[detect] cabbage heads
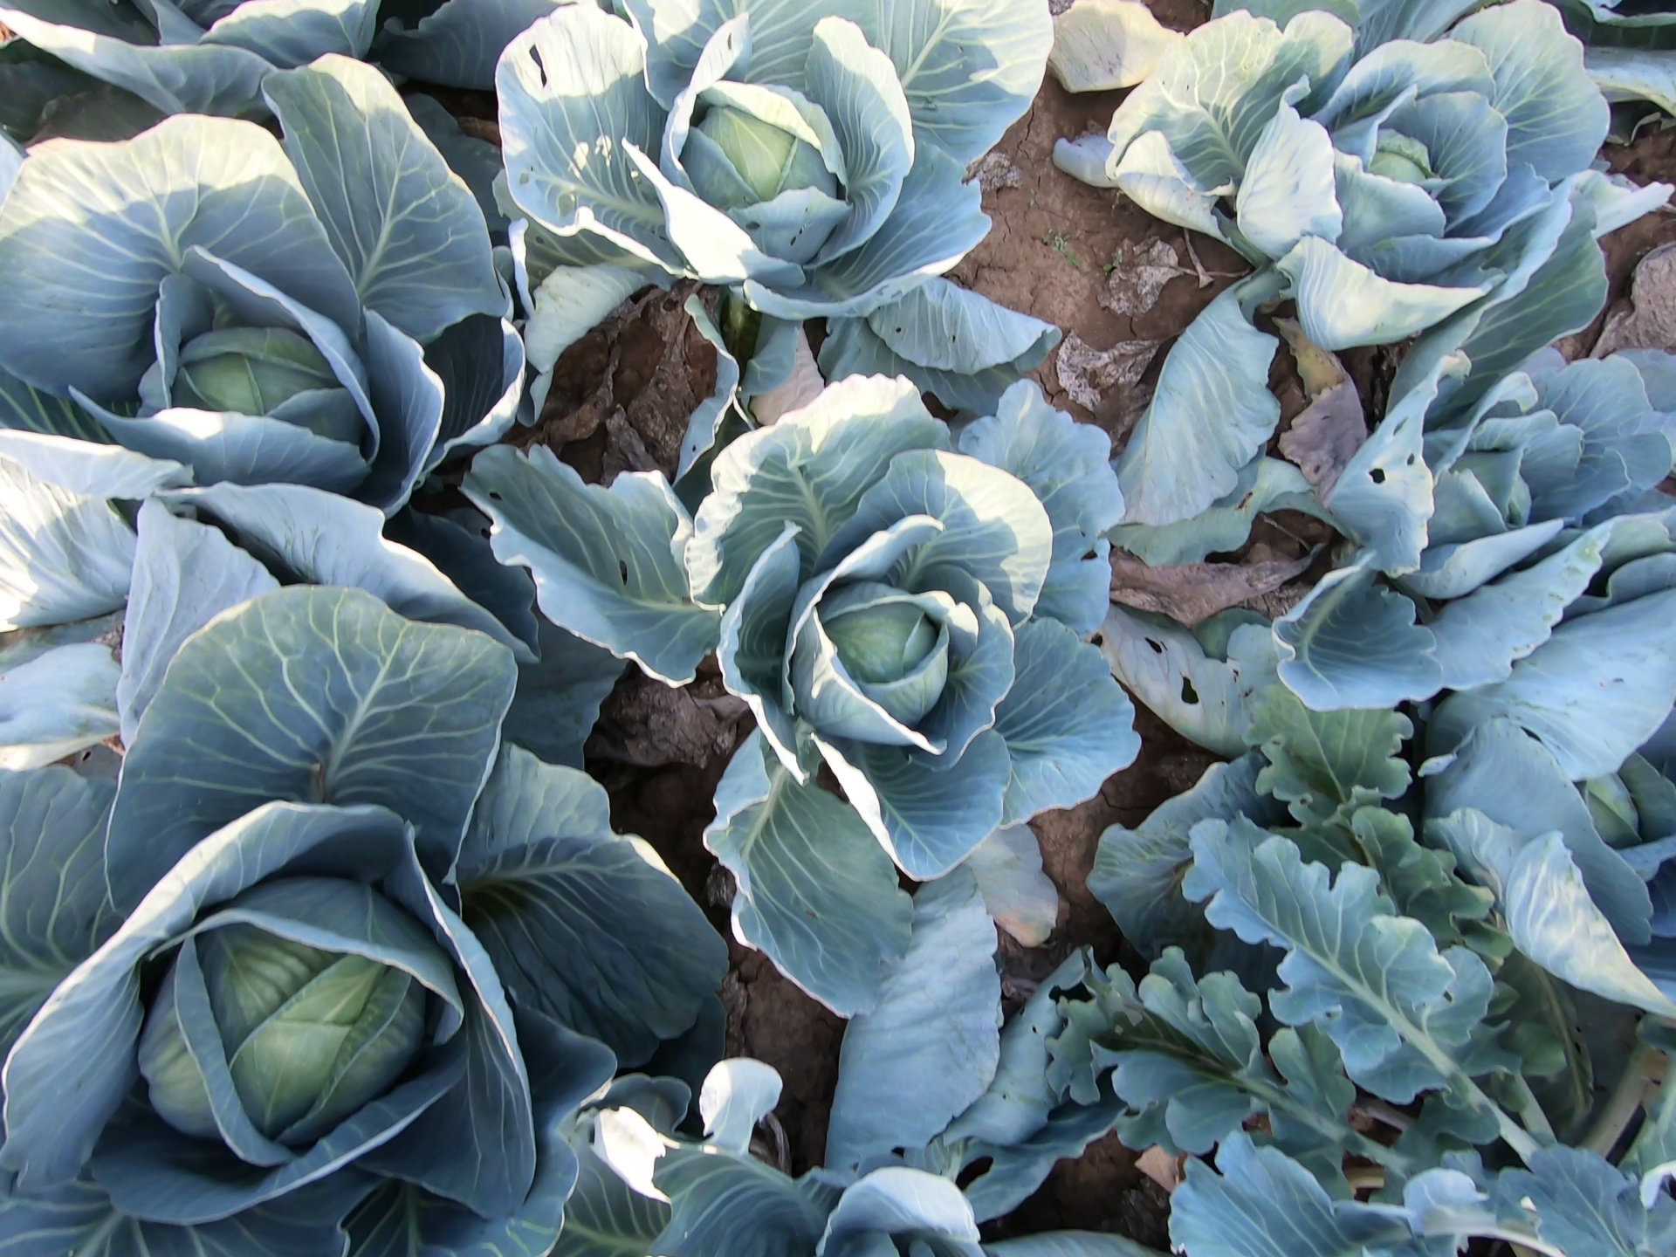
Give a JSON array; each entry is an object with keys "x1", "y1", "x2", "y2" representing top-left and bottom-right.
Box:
[
  {"x1": 683, "y1": 85, "x2": 838, "y2": 254},
  {"x1": 163, "y1": 325, "x2": 362, "y2": 490},
  {"x1": 815, "y1": 584, "x2": 954, "y2": 728},
  {"x1": 1325, "y1": 127, "x2": 1440, "y2": 257},
  {"x1": 1493, "y1": 751, "x2": 1641, "y2": 882},
  {"x1": 154, "y1": 876, "x2": 424, "y2": 1150},
  {"x1": 1426, "y1": 447, "x2": 1532, "y2": 549}
]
